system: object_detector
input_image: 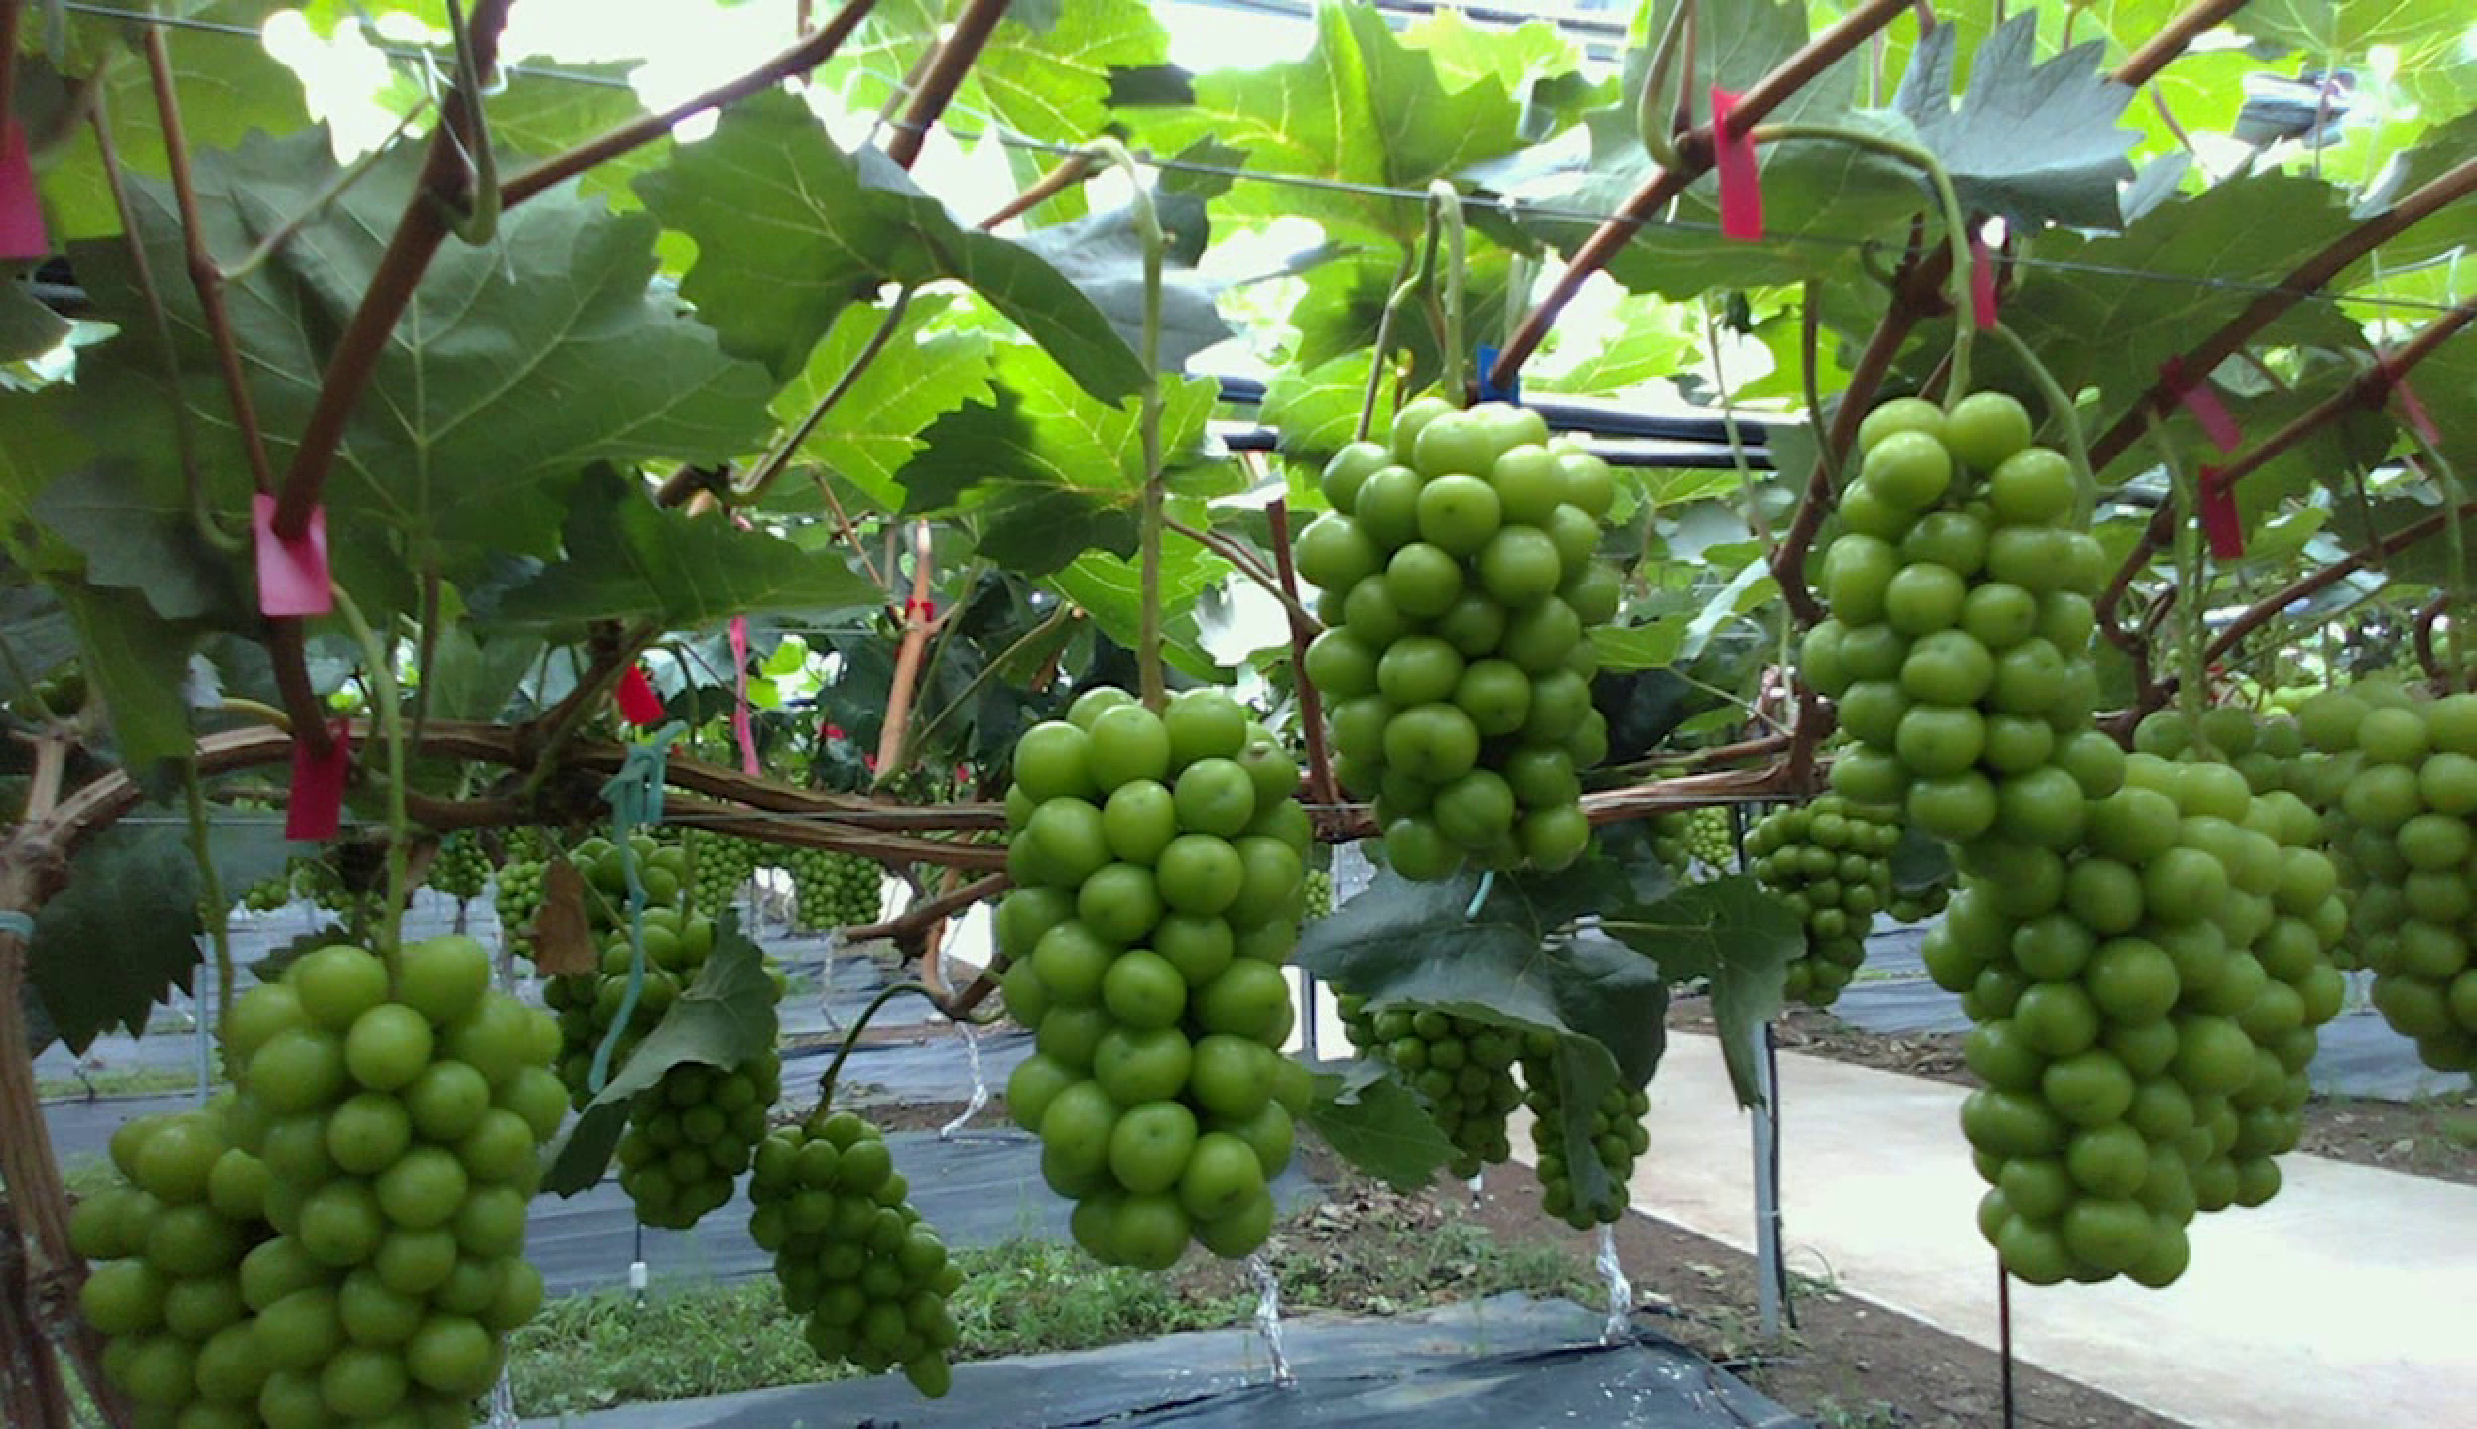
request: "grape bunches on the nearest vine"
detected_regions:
[206,933,568,1427]
[994,687,1316,1274]
[2187,790,2348,1213]
[1919,752,2281,1288]
[67,1086,280,1427]
[1796,391,2124,919]
[2294,669,2475,1074]
[1294,395,1618,883]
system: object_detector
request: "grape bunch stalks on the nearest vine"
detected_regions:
[2386,411,2471,695]
[177,754,242,1088]
[333,582,409,996]
[2144,407,2211,760]
[1431,183,1465,407]
[1090,141,1173,720]
[1753,121,1977,411]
